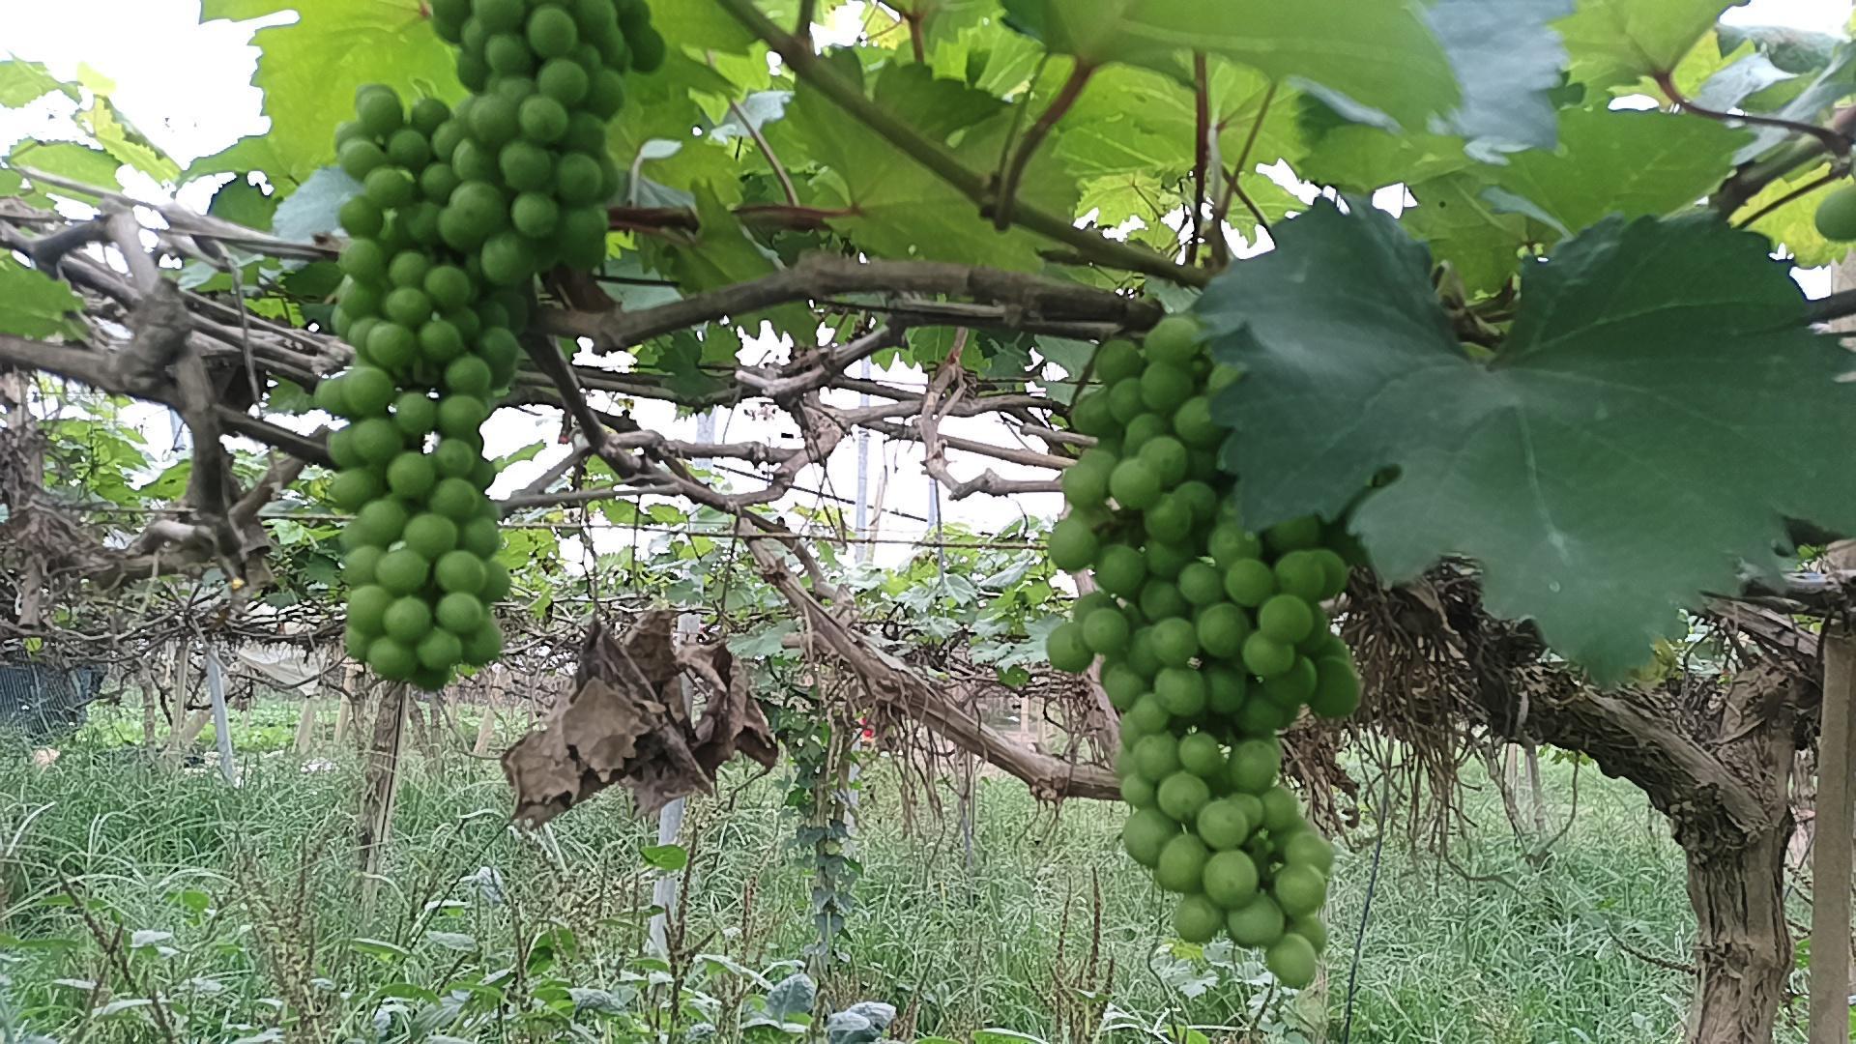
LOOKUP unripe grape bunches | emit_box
[317,86,528,690]
[428,0,663,286]
[1815,186,1855,241]
[1047,320,1359,988]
